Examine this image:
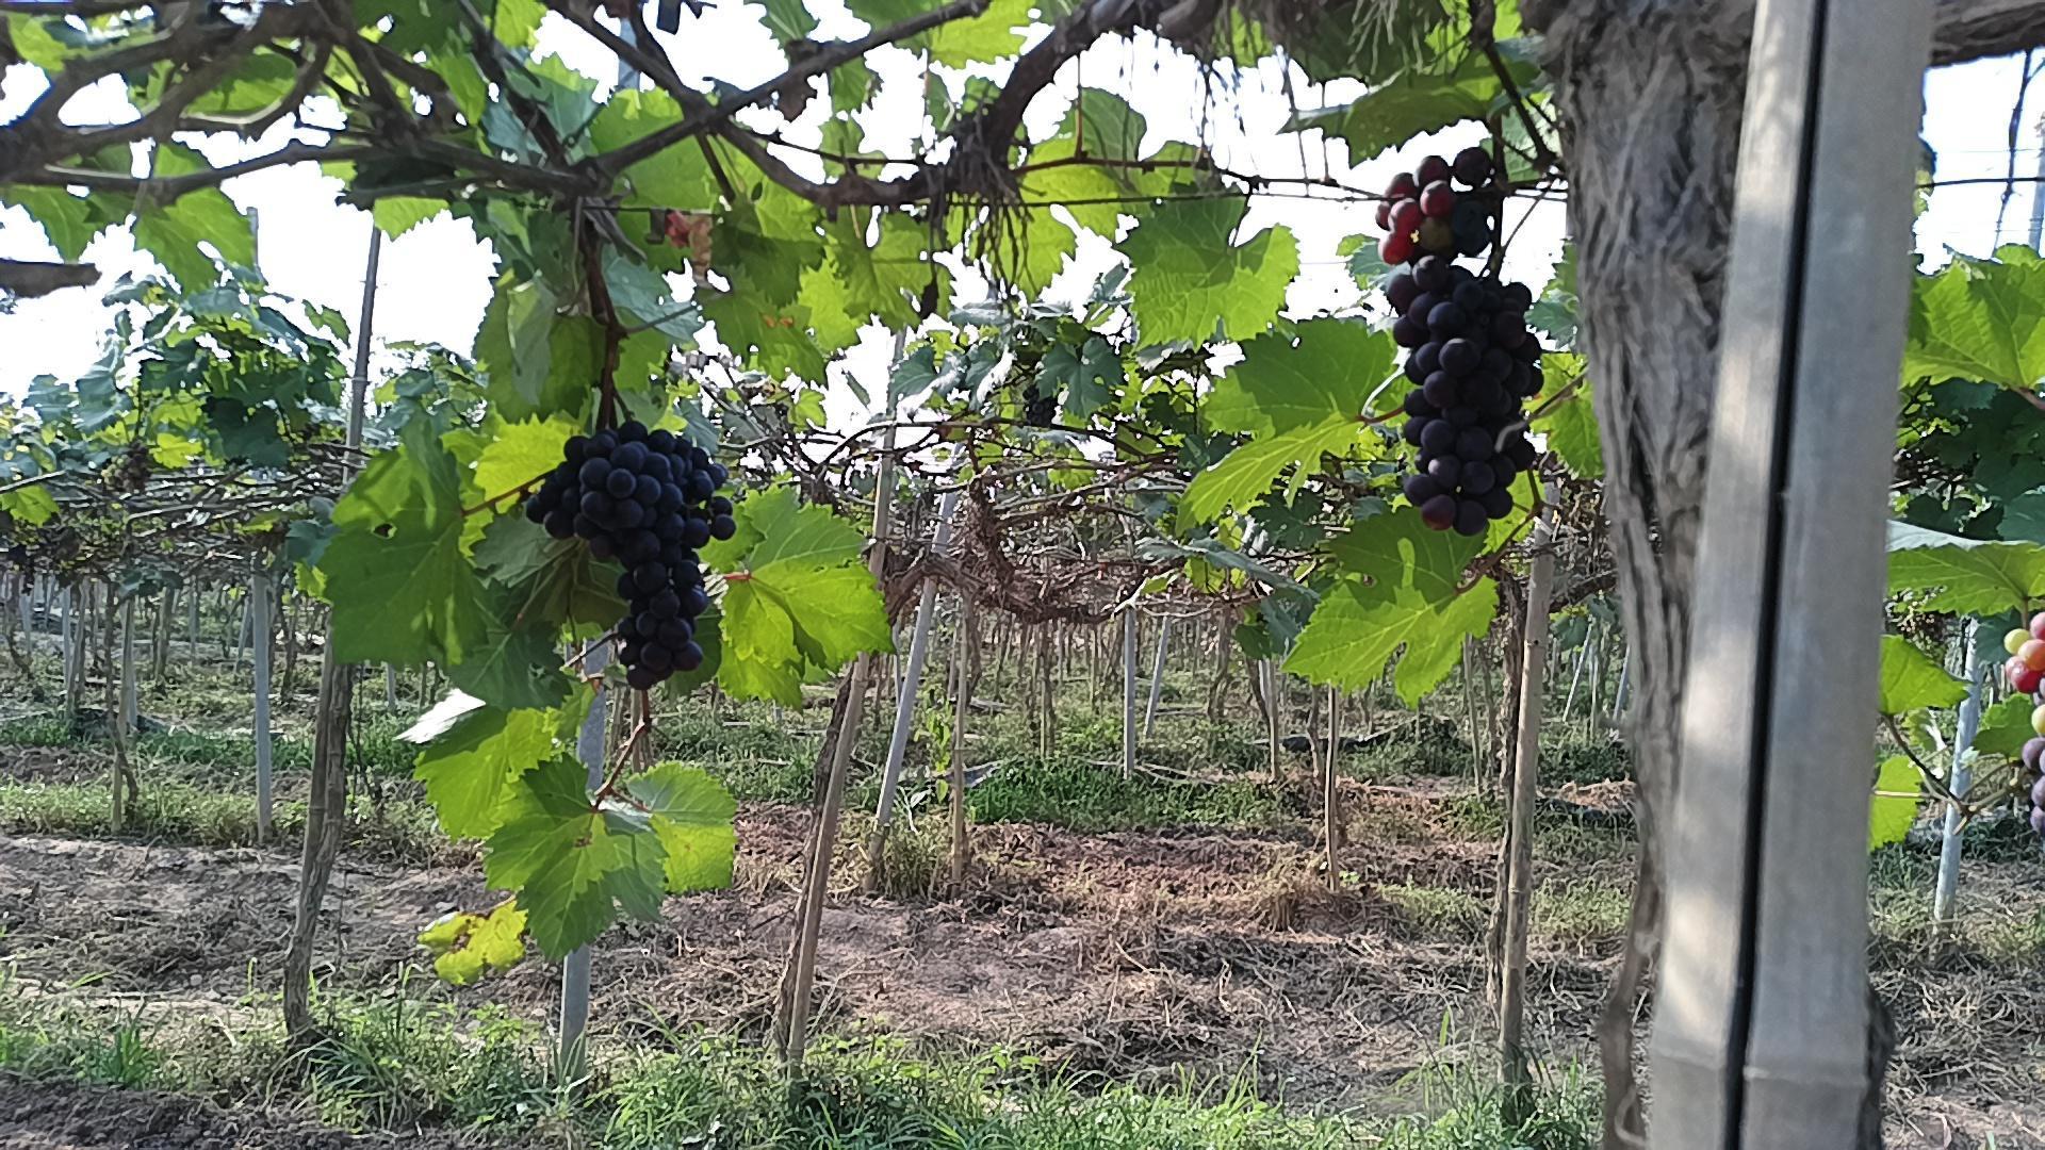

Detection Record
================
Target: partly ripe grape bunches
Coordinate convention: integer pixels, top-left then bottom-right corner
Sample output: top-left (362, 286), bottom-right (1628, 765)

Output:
top-left (1376, 146), bottom-right (1543, 537)
top-left (2003, 611), bottom-right (2044, 837)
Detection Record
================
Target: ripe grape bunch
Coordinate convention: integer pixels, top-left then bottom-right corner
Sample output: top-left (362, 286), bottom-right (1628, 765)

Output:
top-left (527, 418), bottom-right (736, 689)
